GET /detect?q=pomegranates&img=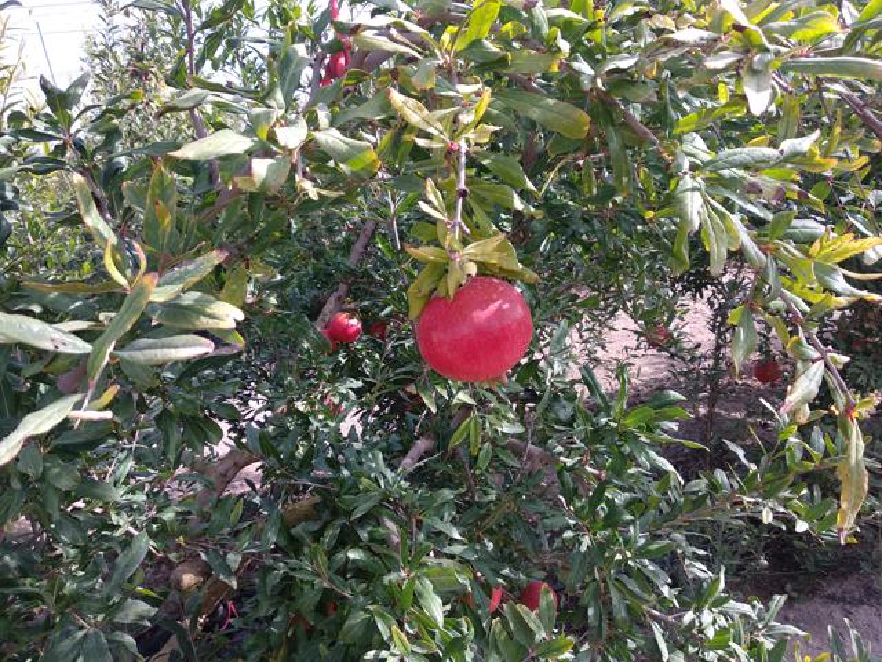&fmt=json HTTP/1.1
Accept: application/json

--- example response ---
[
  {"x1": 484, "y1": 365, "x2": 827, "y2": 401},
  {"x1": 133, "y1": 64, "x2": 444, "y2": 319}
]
[
  {"x1": 369, "y1": 321, "x2": 387, "y2": 341},
  {"x1": 754, "y1": 360, "x2": 780, "y2": 383},
  {"x1": 489, "y1": 588, "x2": 502, "y2": 612},
  {"x1": 320, "y1": 310, "x2": 362, "y2": 349},
  {"x1": 521, "y1": 582, "x2": 544, "y2": 611},
  {"x1": 418, "y1": 276, "x2": 533, "y2": 389}
]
